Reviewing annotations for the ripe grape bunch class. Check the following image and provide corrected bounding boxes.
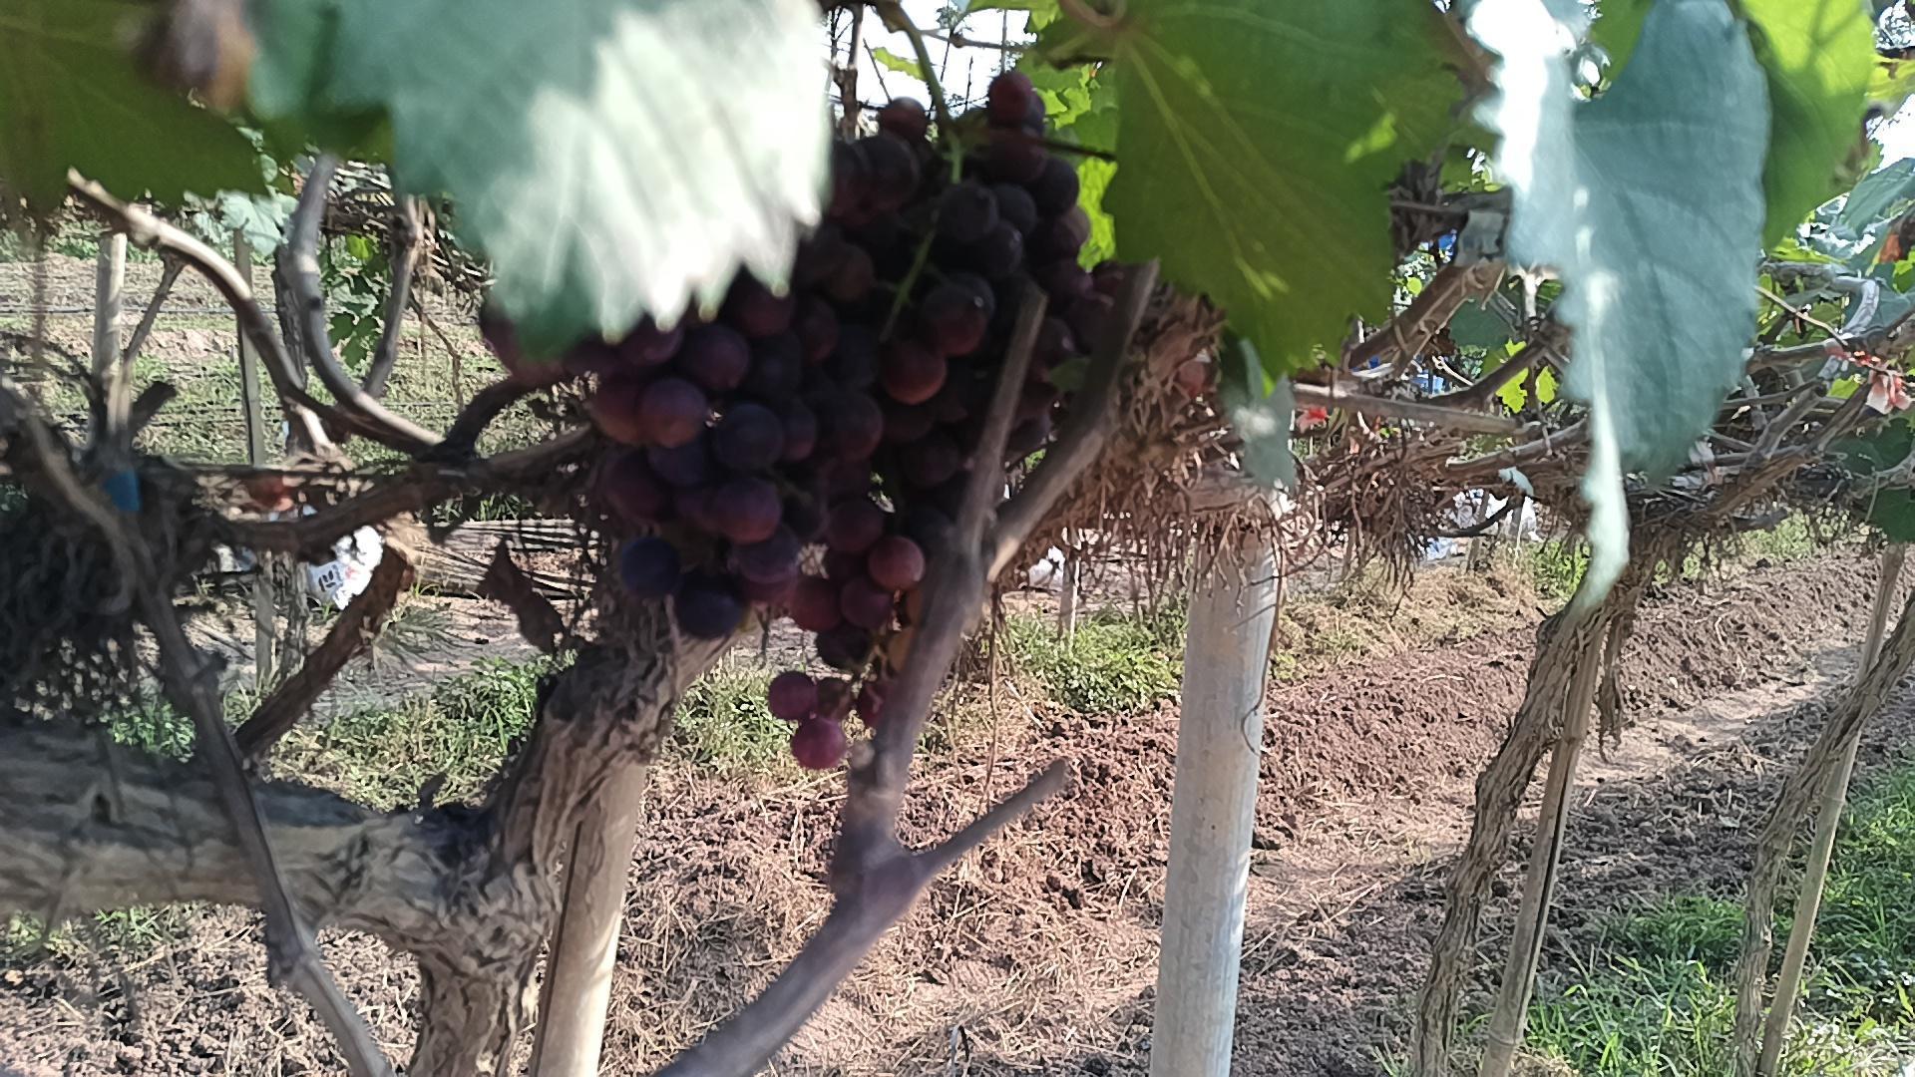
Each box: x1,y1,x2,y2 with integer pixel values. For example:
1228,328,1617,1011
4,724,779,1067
561,69,1129,770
